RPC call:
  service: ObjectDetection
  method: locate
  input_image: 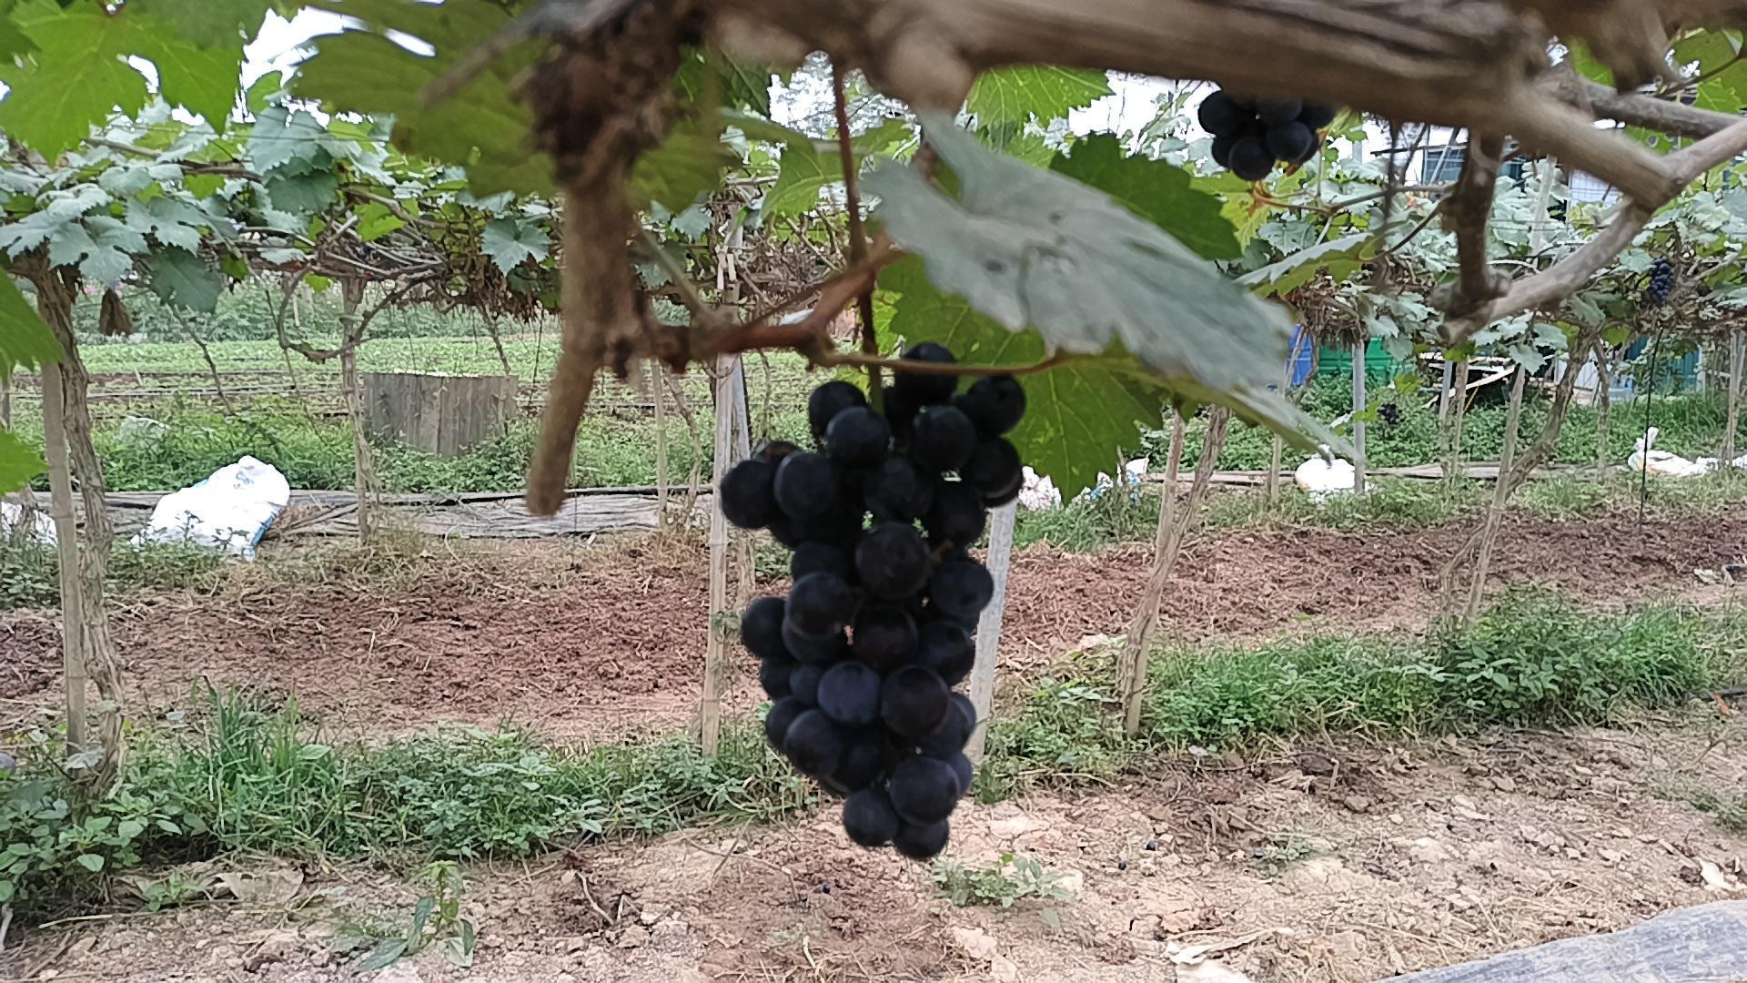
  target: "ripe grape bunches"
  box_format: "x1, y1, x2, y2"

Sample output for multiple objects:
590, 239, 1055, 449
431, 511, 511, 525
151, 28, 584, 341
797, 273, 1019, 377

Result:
722, 341, 1025, 858
1198, 90, 1338, 182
